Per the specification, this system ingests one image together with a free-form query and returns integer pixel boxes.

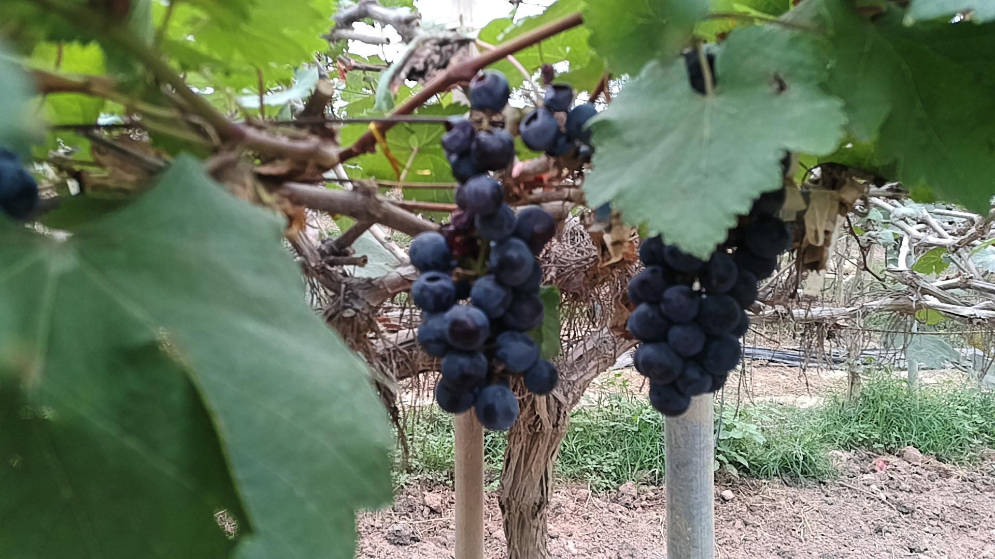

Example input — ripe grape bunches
[409,68,601,430]
[627,149,791,416]
[0,146,39,222]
